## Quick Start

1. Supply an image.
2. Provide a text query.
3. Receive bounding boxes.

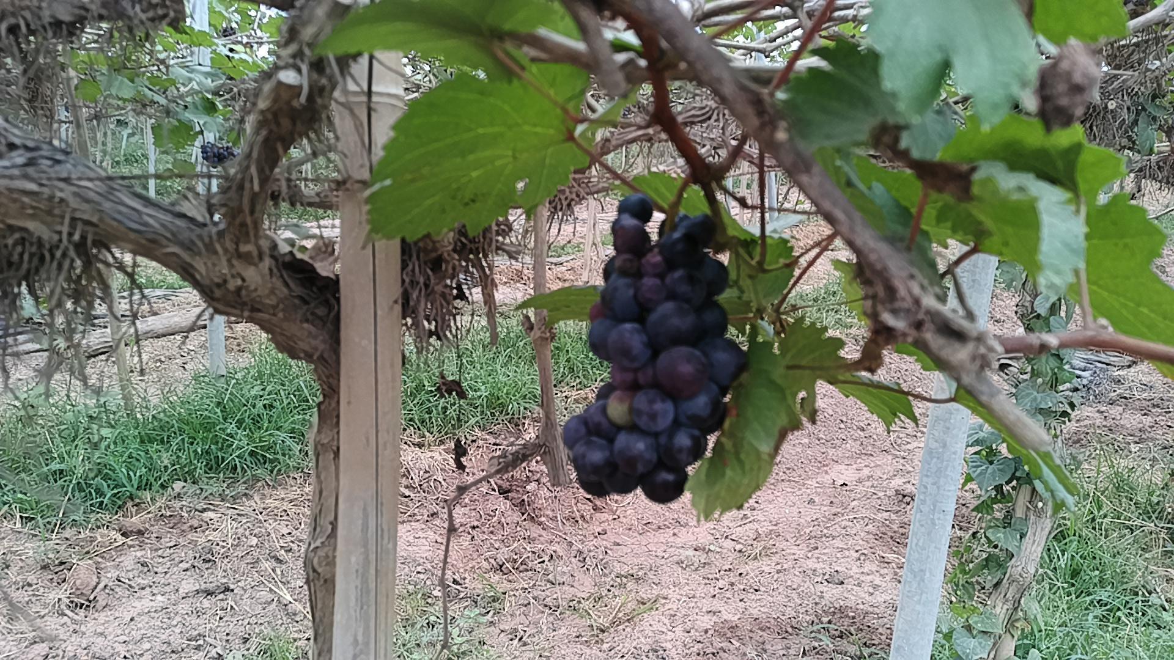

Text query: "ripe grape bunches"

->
[564,194,746,503]
[200,144,238,167]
